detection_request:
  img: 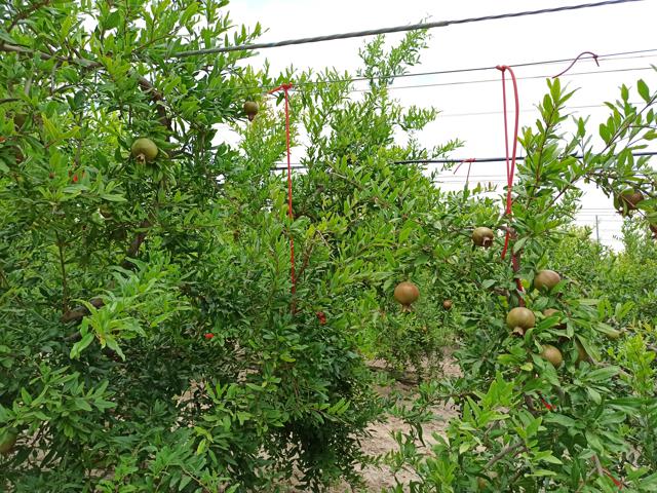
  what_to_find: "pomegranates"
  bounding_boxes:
[506,306,536,338]
[648,222,657,240]
[577,339,588,362]
[442,300,453,310]
[472,227,495,246]
[393,281,421,313]
[243,101,259,122]
[534,270,561,293]
[615,189,644,218]
[0,433,16,453]
[541,343,563,369]
[130,138,158,161]
[542,308,557,316]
